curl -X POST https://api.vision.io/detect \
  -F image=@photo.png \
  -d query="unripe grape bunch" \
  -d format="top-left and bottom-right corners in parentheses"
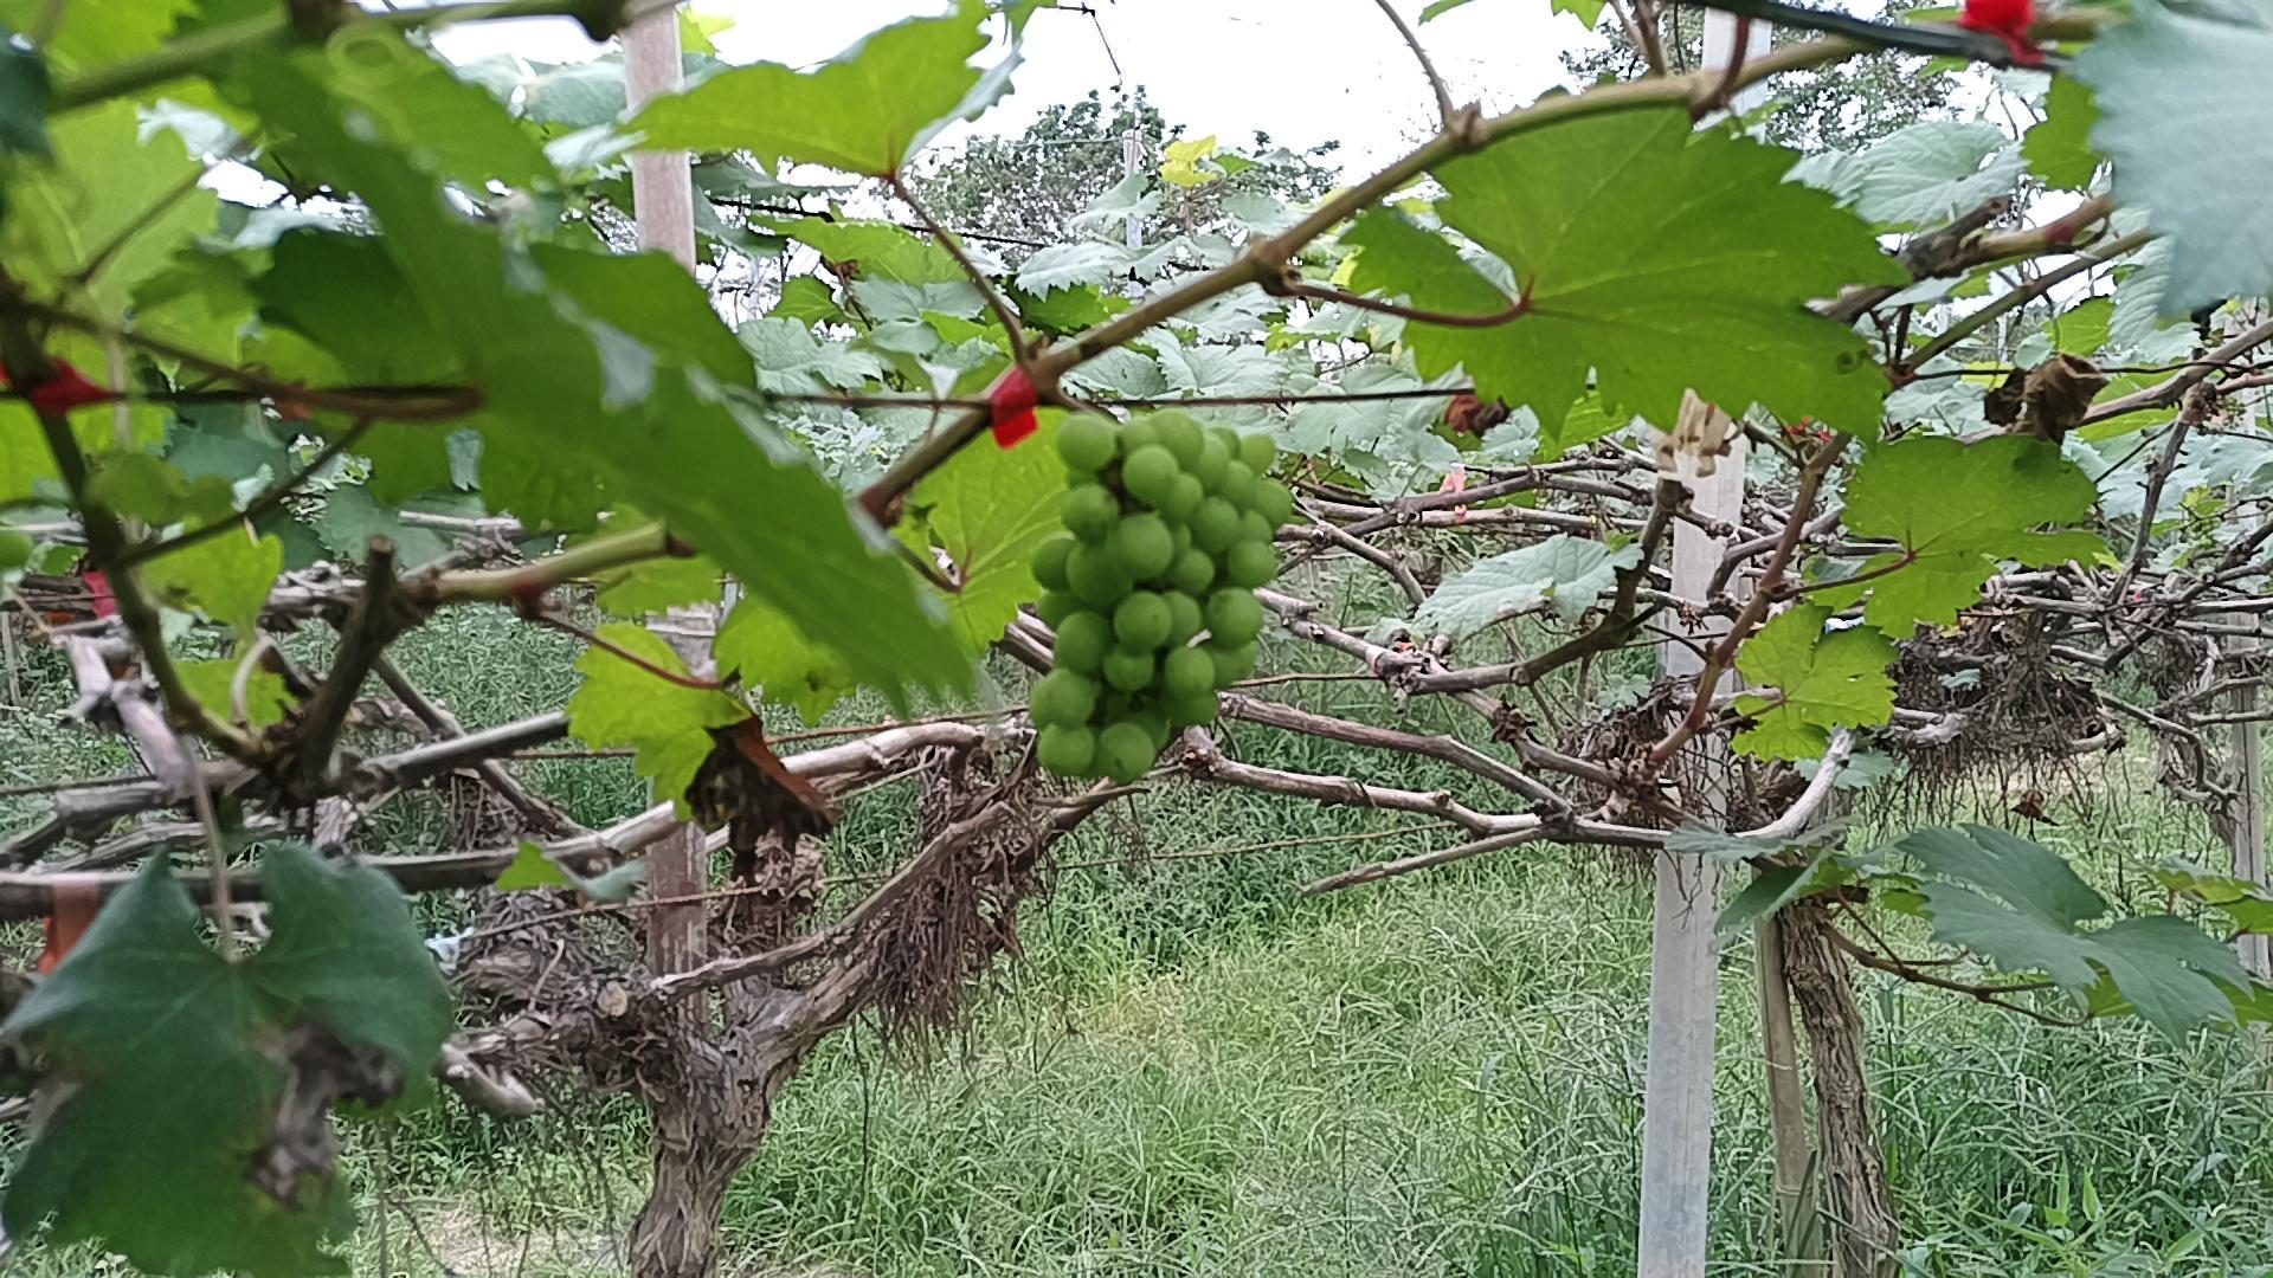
top-left (1029, 411), bottom-right (1290, 779)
